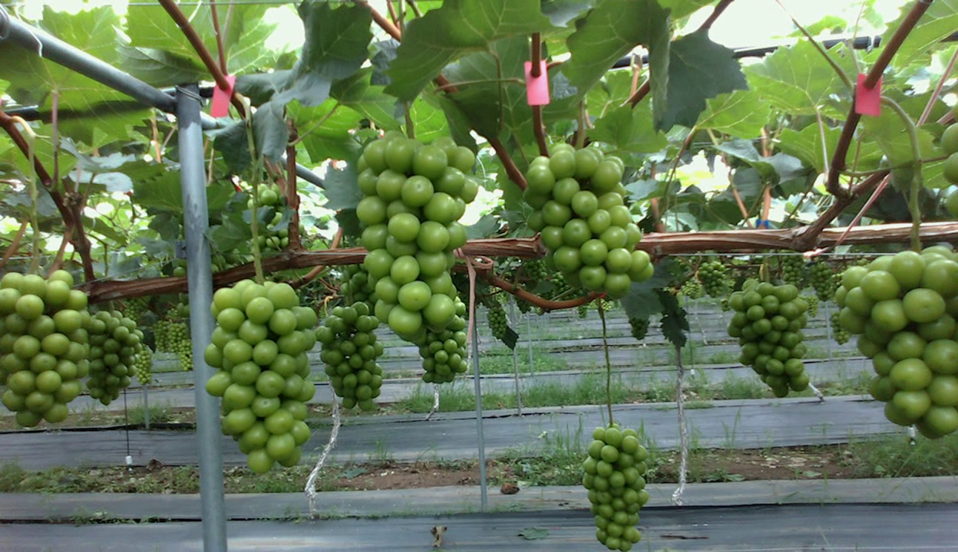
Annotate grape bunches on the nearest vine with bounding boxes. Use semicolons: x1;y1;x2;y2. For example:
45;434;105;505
0;270;92;429
524;144;655;297
834;245;957;439
203;280;317;474
356;130;479;342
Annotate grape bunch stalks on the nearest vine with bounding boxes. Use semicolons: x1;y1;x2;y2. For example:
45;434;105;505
574;98;586;150
9;116;39;274
880;96;922;254
401;101;415;140
234;92;263;283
